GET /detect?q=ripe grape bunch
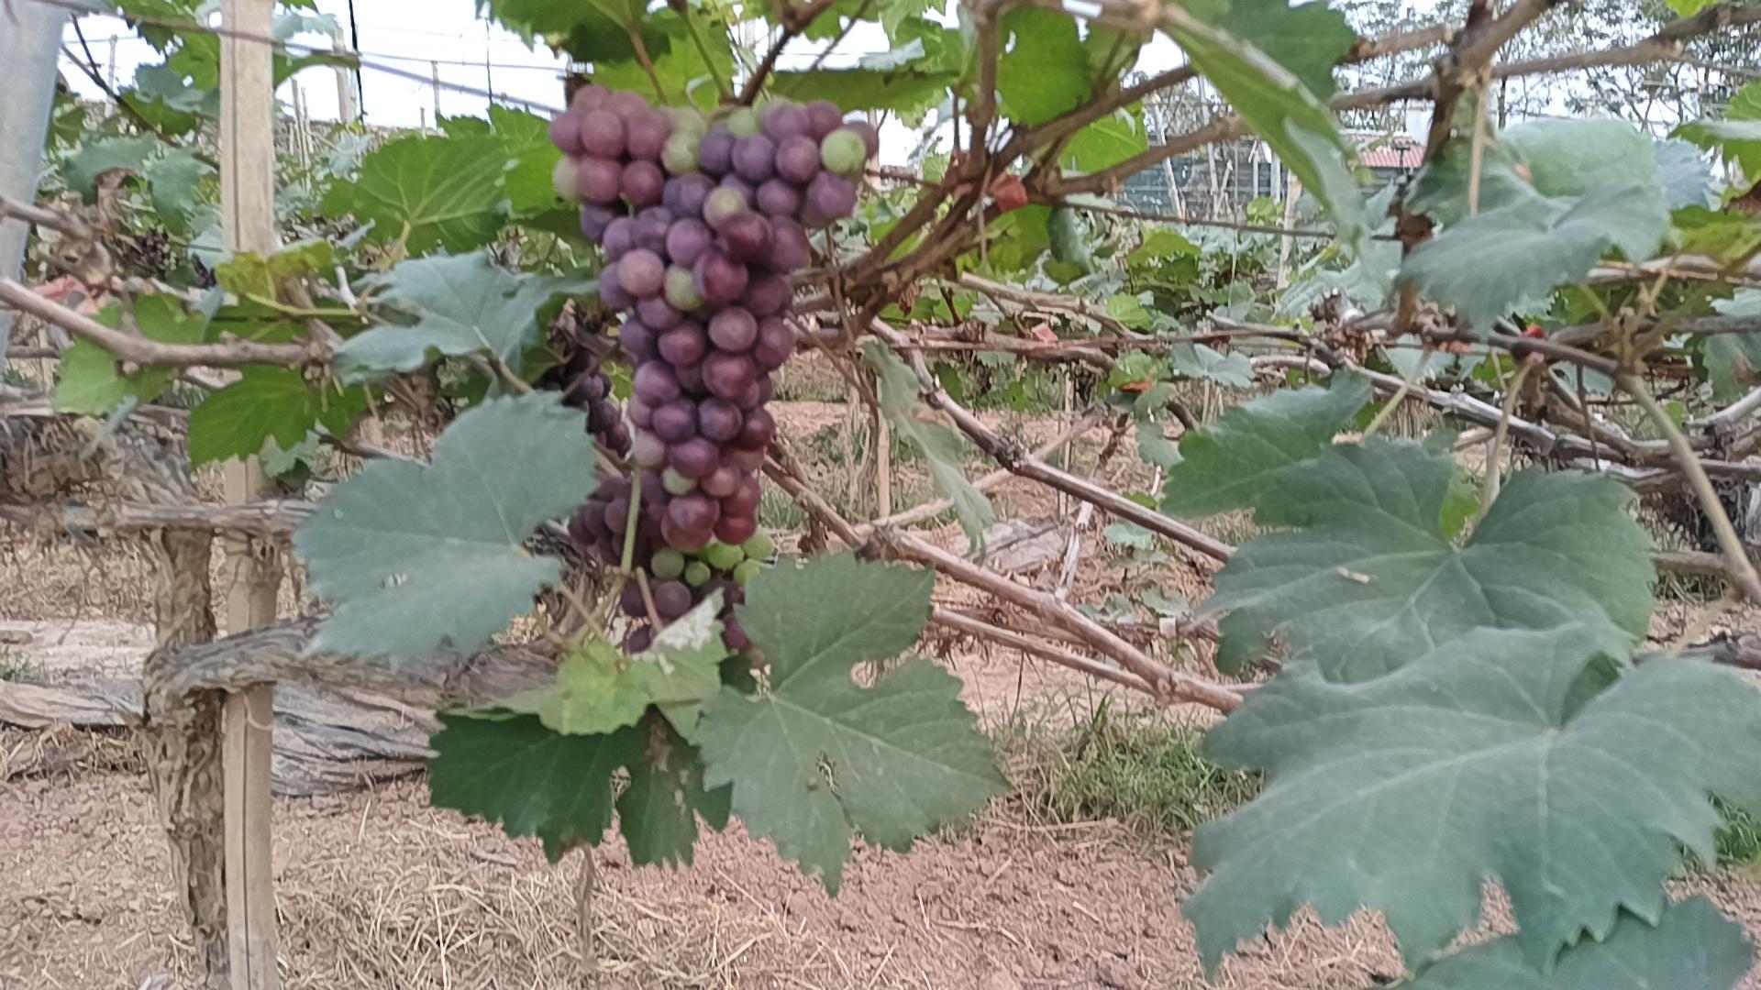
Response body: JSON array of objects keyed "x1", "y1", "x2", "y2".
[{"x1": 534, "y1": 344, "x2": 631, "y2": 456}]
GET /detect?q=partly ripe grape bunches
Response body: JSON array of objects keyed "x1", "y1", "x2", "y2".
[
  {"x1": 569, "y1": 471, "x2": 770, "y2": 651},
  {"x1": 549, "y1": 83, "x2": 869, "y2": 549}
]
